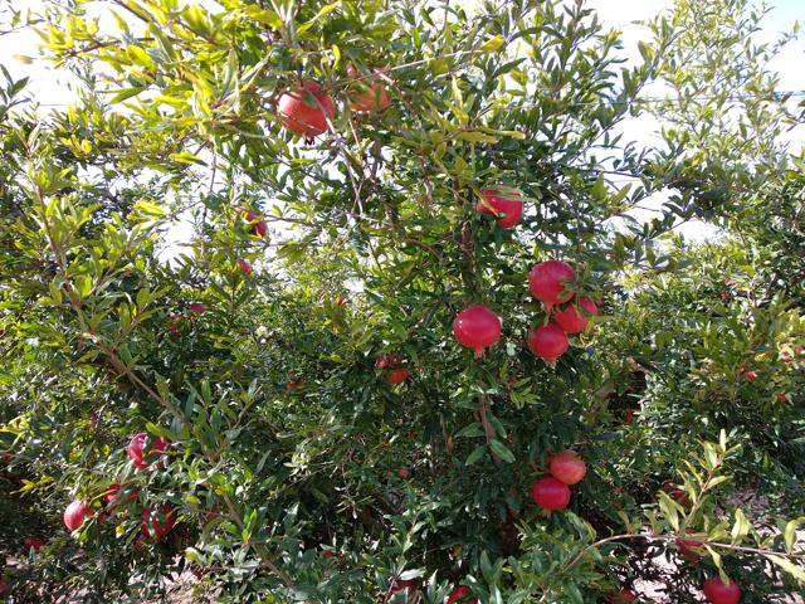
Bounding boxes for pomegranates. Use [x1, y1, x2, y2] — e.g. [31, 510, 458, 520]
[375, 355, 409, 384]
[527, 321, 570, 362]
[608, 588, 636, 604]
[103, 484, 121, 507]
[675, 527, 703, 557]
[475, 190, 525, 228]
[528, 259, 577, 312]
[553, 297, 599, 335]
[453, 305, 502, 354]
[702, 576, 742, 604]
[64, 498, 96, 532]
[278, 81, 335, 145]
[448, 584, 477, 604]
[128, 432, 165, 472]
[531, 476, 571, 520]
[550, 449, 586, 484]
[135, 501, 177, 549]
[664, 482, 689, 505]
[346, 84, 391, 112]
[390, 580, 415, 595]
